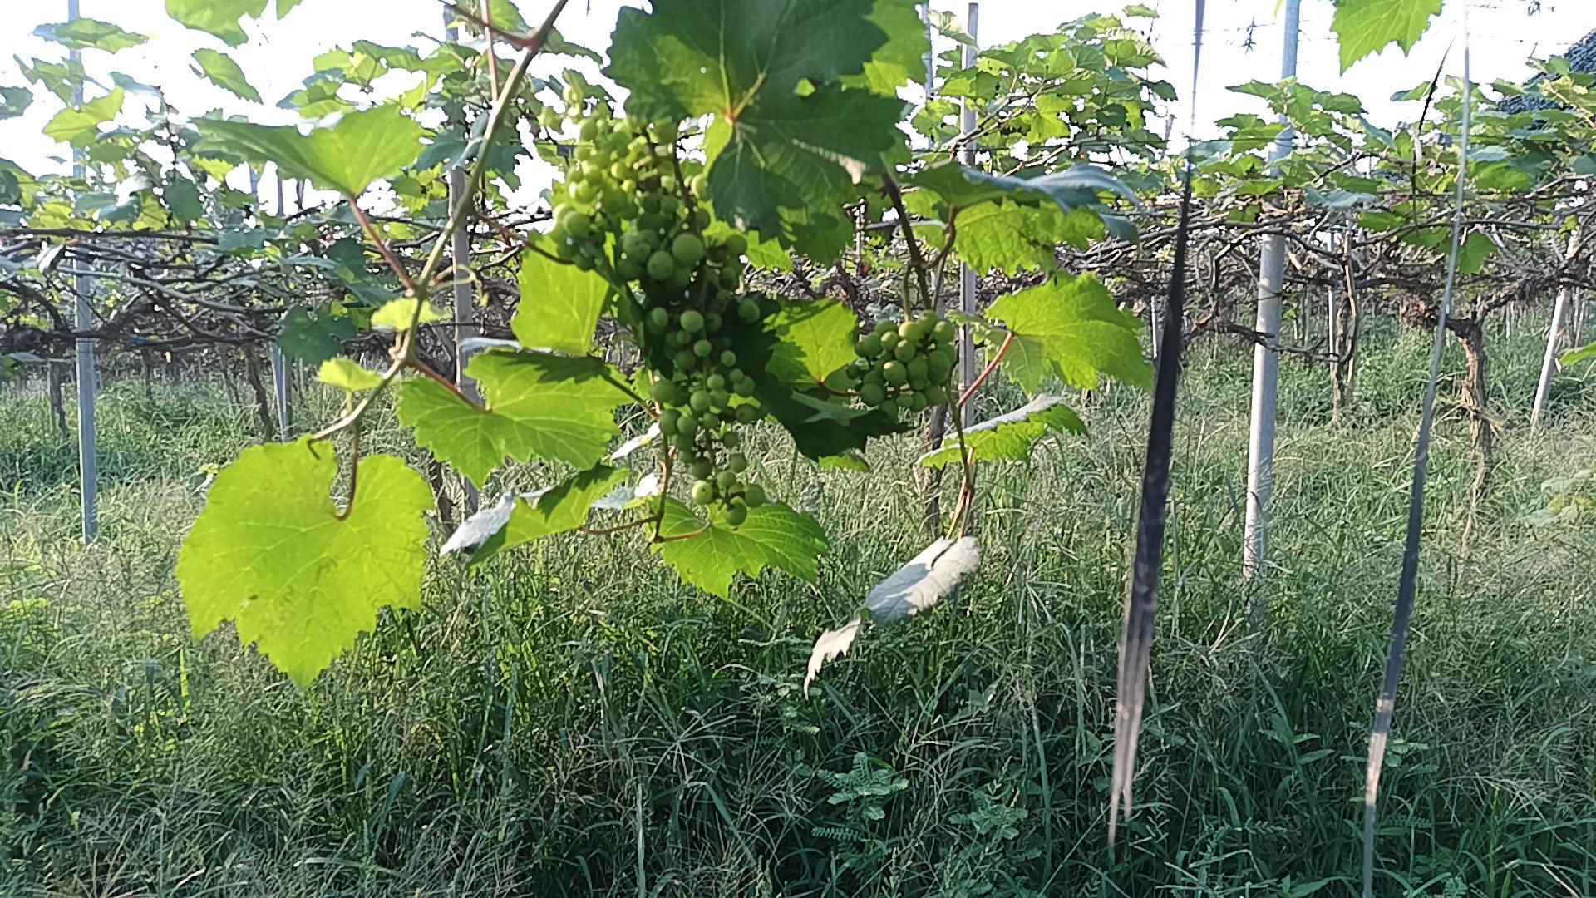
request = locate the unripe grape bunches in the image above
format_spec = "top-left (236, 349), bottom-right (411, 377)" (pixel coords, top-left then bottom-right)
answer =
top-left (848, 309), bottom-right (959, 423)
top-left (548, 101), bottom-right (764, 526)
